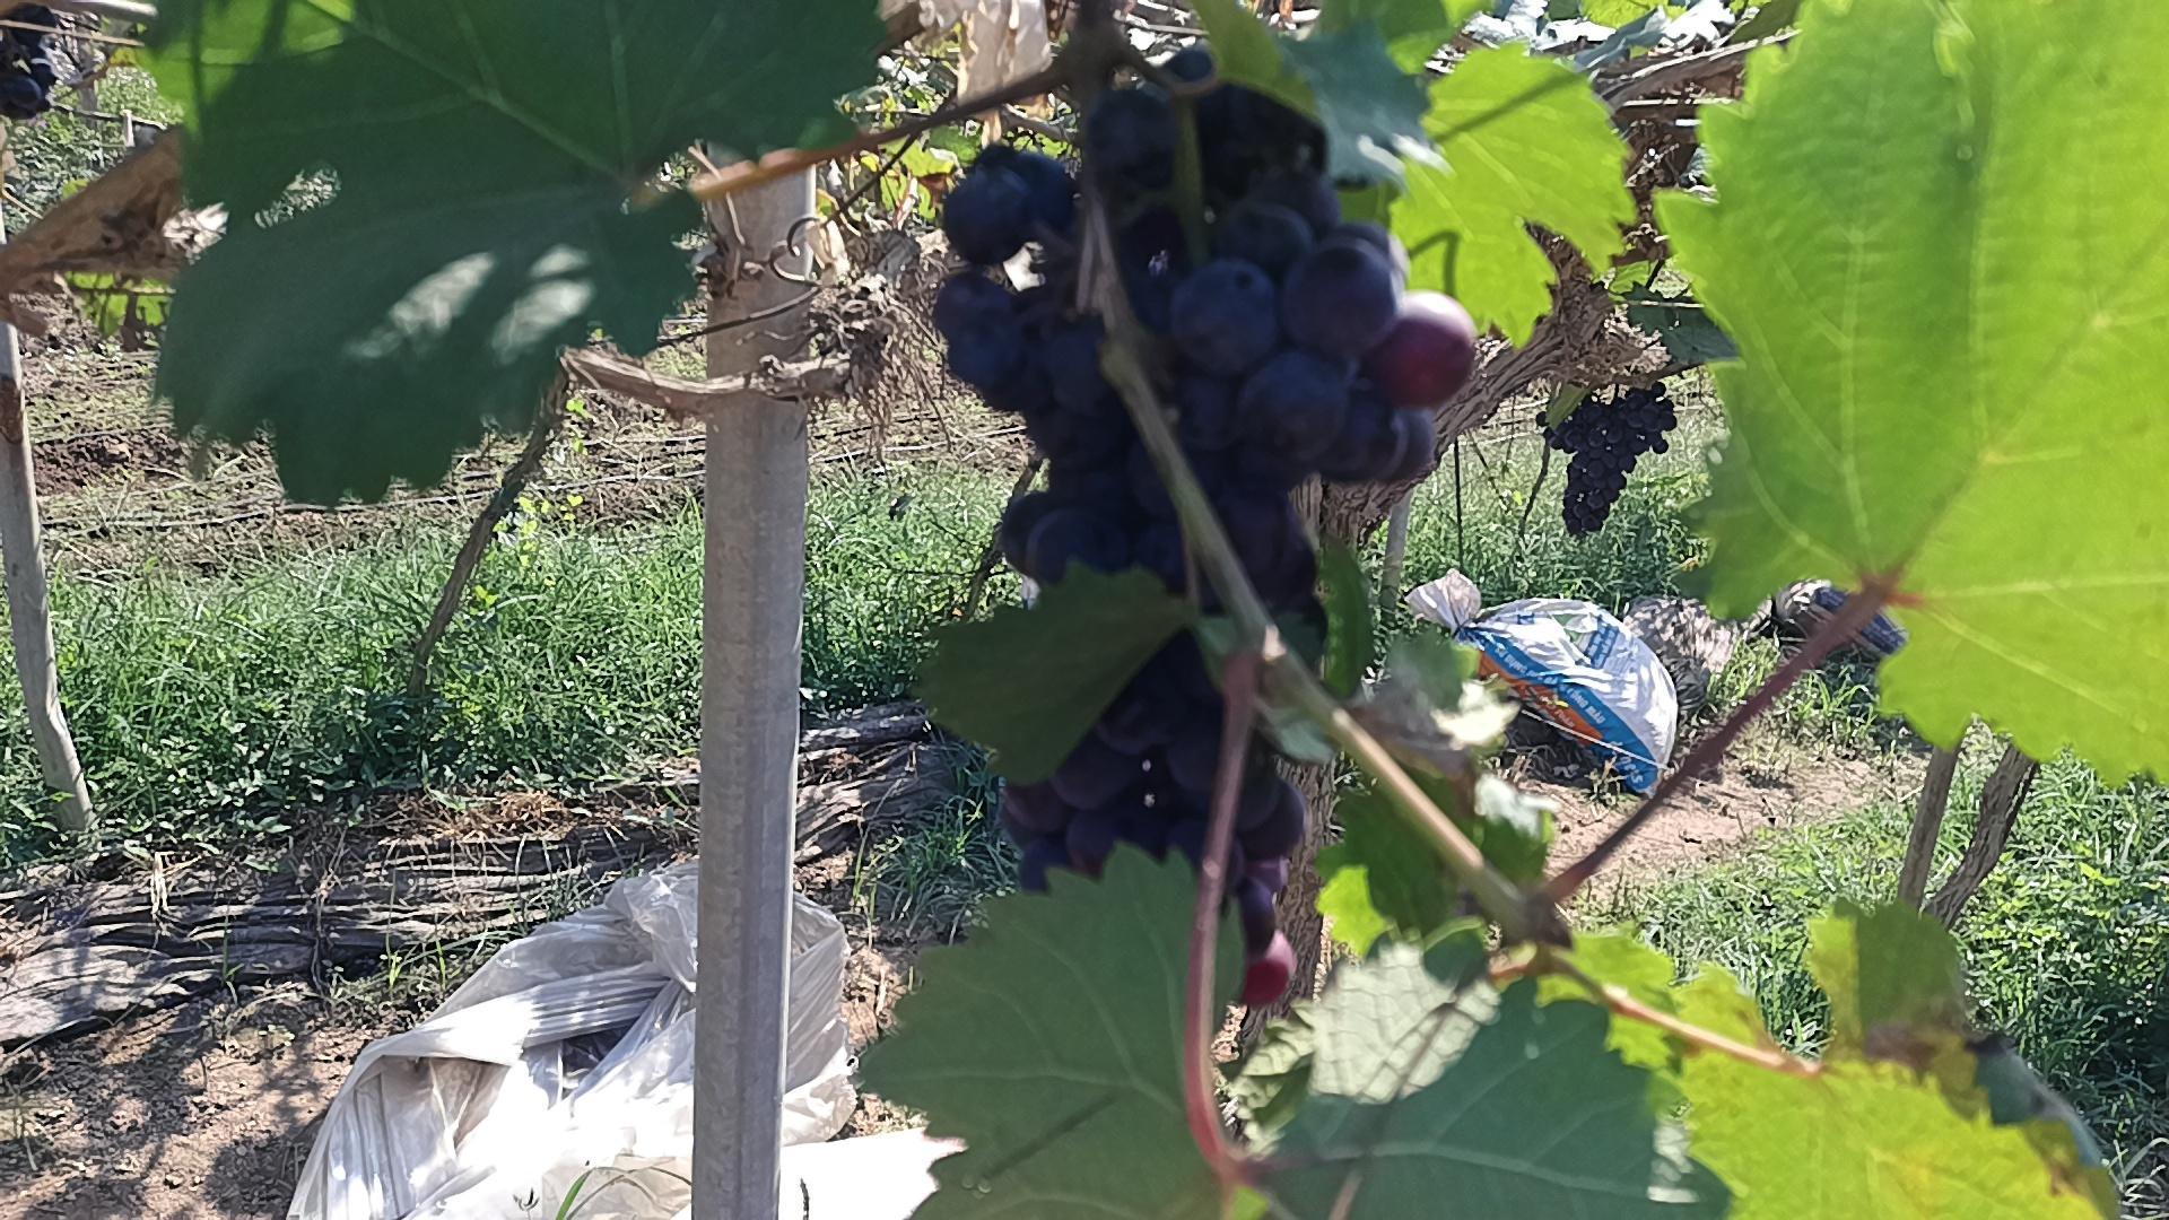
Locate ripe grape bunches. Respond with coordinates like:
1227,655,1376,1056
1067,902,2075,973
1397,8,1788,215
1545,381,1679,539
0,6,60,121
931,46,1490,1008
